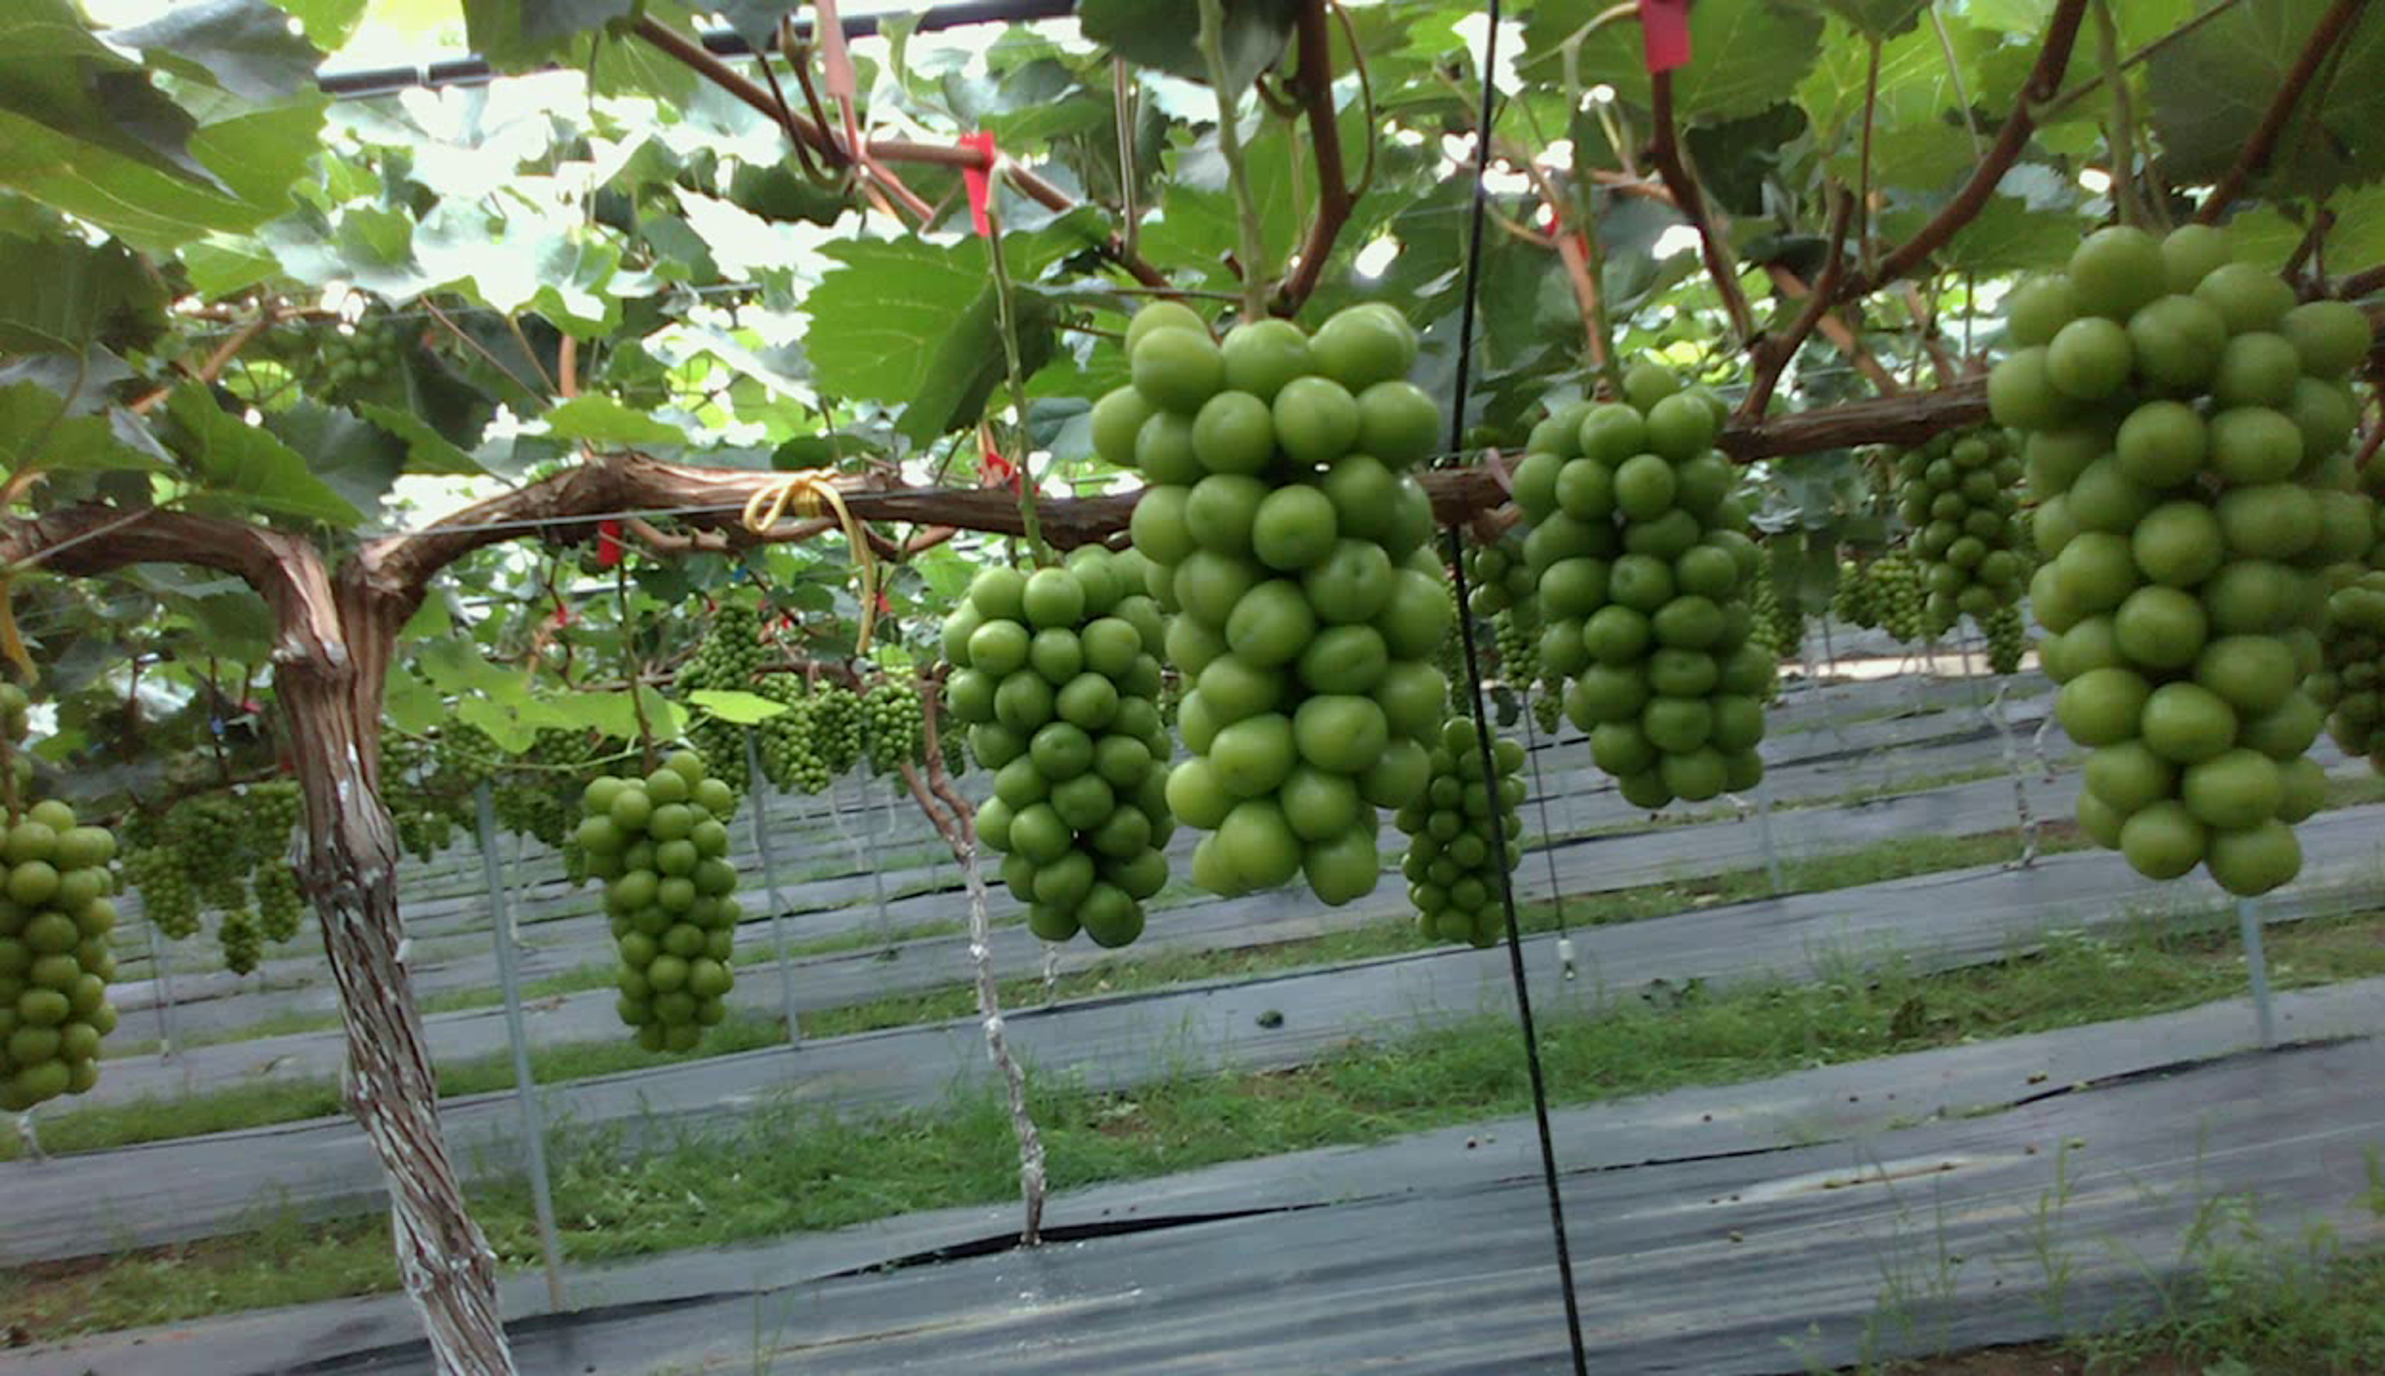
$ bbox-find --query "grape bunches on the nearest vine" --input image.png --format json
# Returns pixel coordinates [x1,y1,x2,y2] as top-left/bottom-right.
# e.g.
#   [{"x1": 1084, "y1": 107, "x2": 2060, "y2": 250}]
[
  {"x1": 1987, "y1": 224, "x2": 2370, "y2": 898},
  {"x1": 944, "y1": 543, "x2": 1171, "y2": 948},
  {"x1": 1515, "y1": 363, "x2": 1770, "y2": 810},
  {"x1": 1087, "y1": 300, "x2": 1454, "y2": 904}
]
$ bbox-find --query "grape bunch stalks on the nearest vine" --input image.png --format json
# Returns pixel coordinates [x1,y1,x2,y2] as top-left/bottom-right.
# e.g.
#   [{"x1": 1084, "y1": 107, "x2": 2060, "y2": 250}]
[
  {"x1": 2091, "y1": 2, "x2": 2137, "y2": 227},
  {"x1": 982, "y1": 166, "x2": 1049, "y2": 570},
  {"x1": 1194, "y1": 2, "x2": 1267, "y2": 323},
  {"x1": 1523, "y1": 4, "x2": 1630, "y2": 401}
]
